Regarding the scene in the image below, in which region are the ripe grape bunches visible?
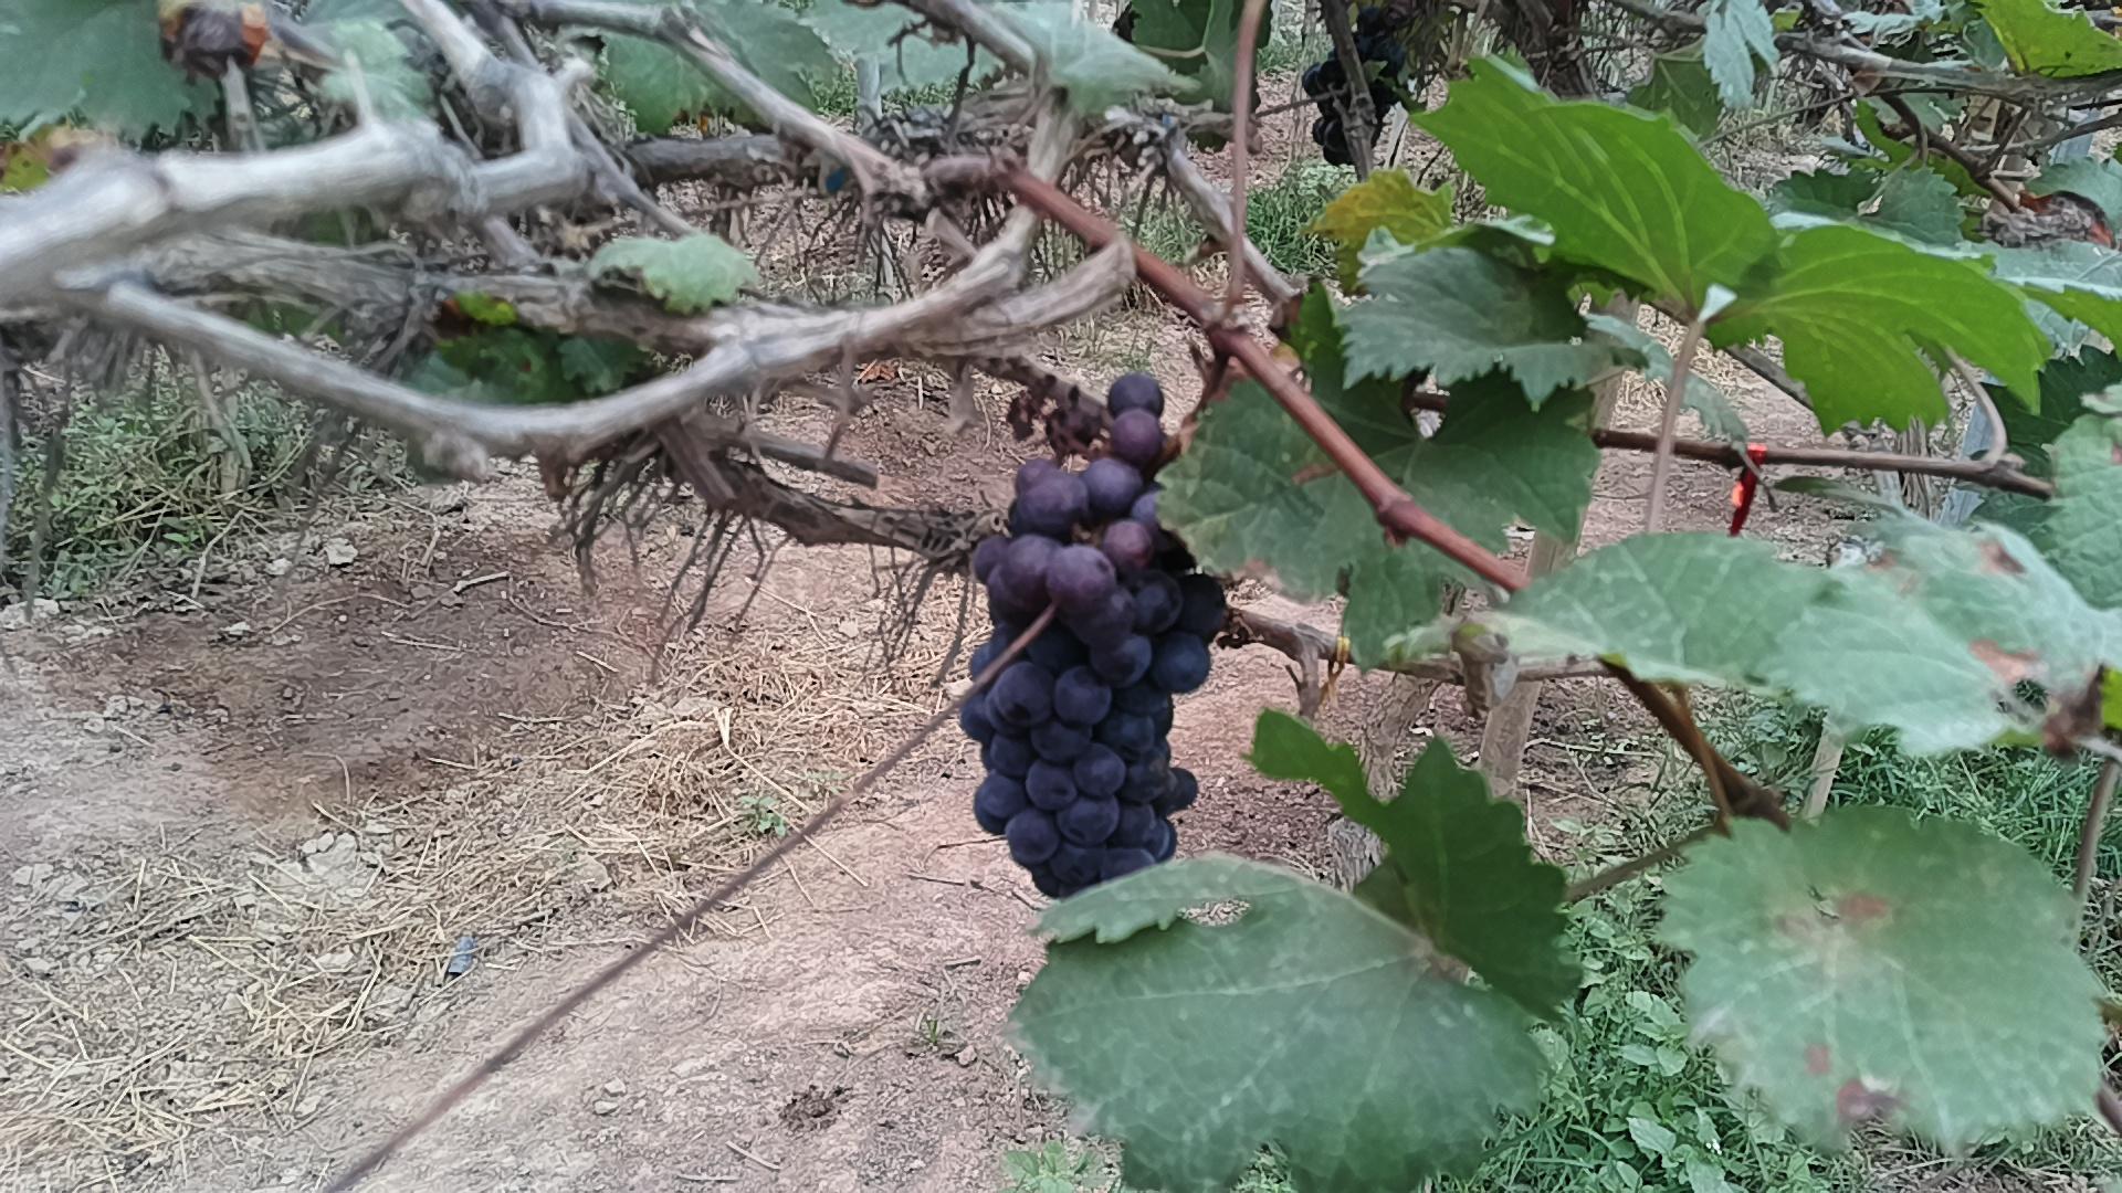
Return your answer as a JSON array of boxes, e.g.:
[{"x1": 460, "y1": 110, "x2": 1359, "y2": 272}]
[
  {"x1": 958, "y1": 374, "x2": 1223, "y2": 897},
  {"x1": 1299, "y1": 9, "x2": 1409, "y2": 168}
]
